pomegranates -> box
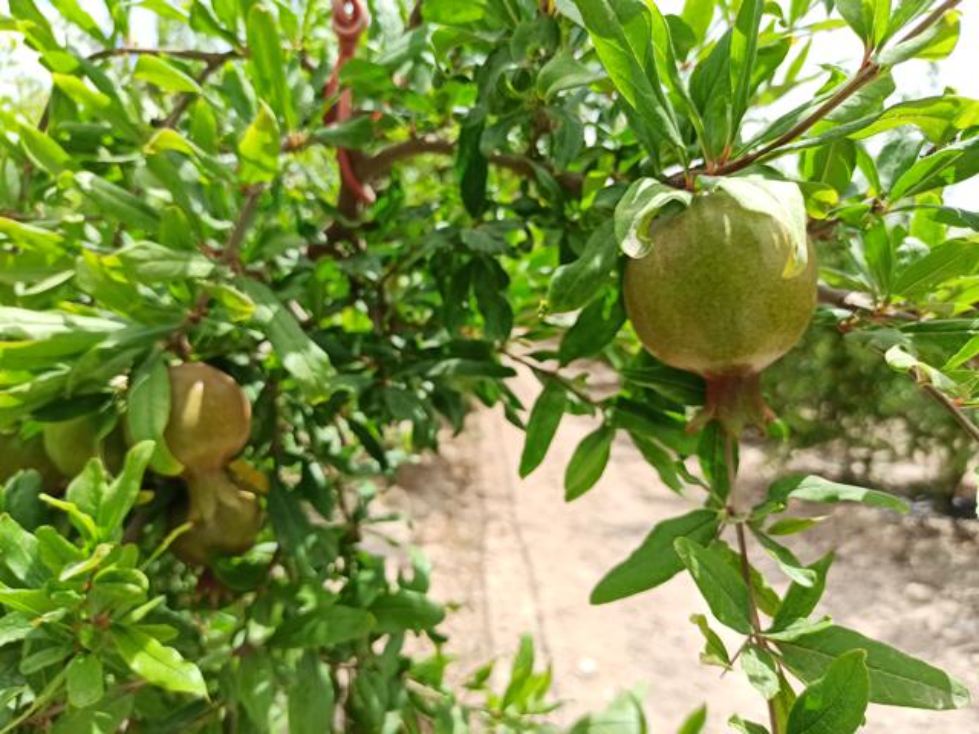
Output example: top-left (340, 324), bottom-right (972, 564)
top-left (162, 362), bottom-right (255, 521)
top-left (0, 433), bottom-right (67, 495)
top-left (41, 419), bottom-right (125, 482)
top-left (165, 489), bottom-right (260, 607)
top-left (624, 194), bottom-right (818, 445)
